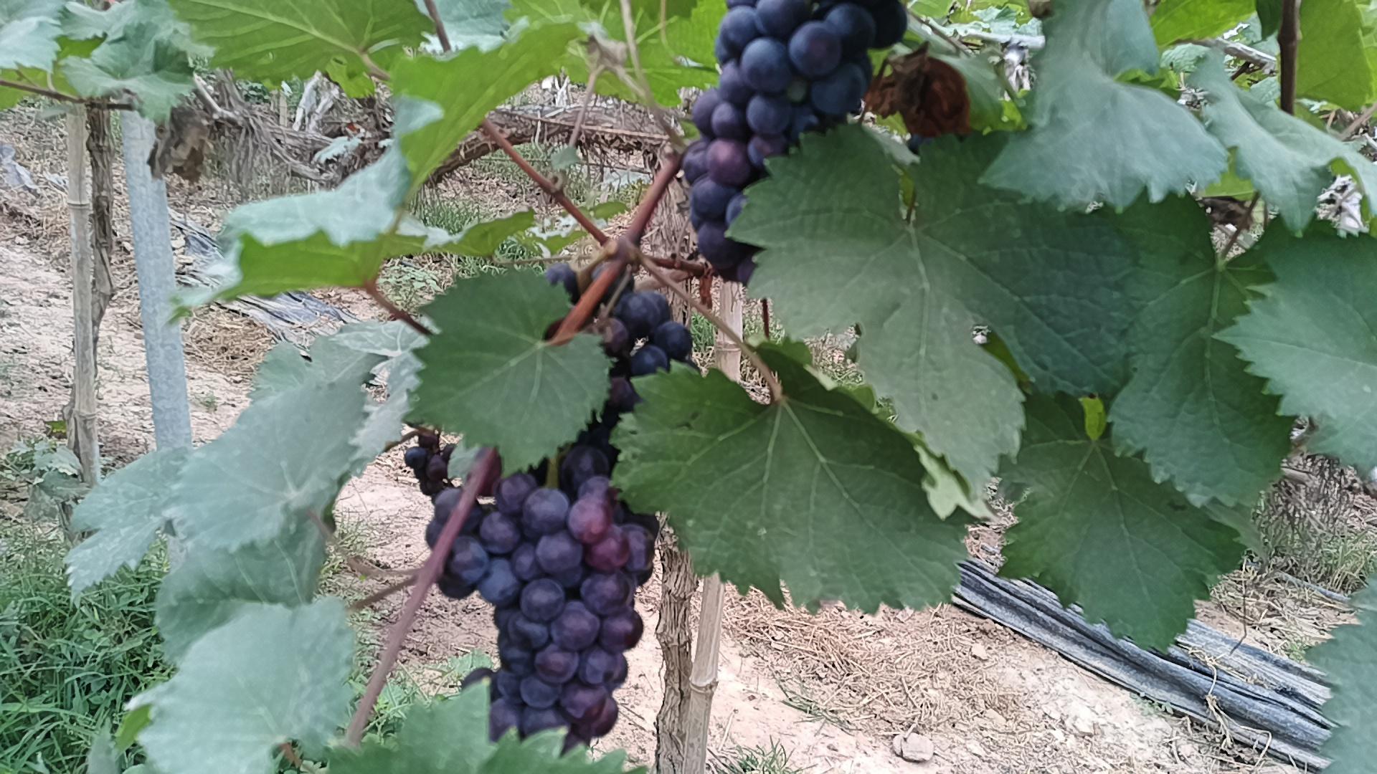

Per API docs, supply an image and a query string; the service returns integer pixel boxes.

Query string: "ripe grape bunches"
[405,254,692,751]
[684,0,906,282]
